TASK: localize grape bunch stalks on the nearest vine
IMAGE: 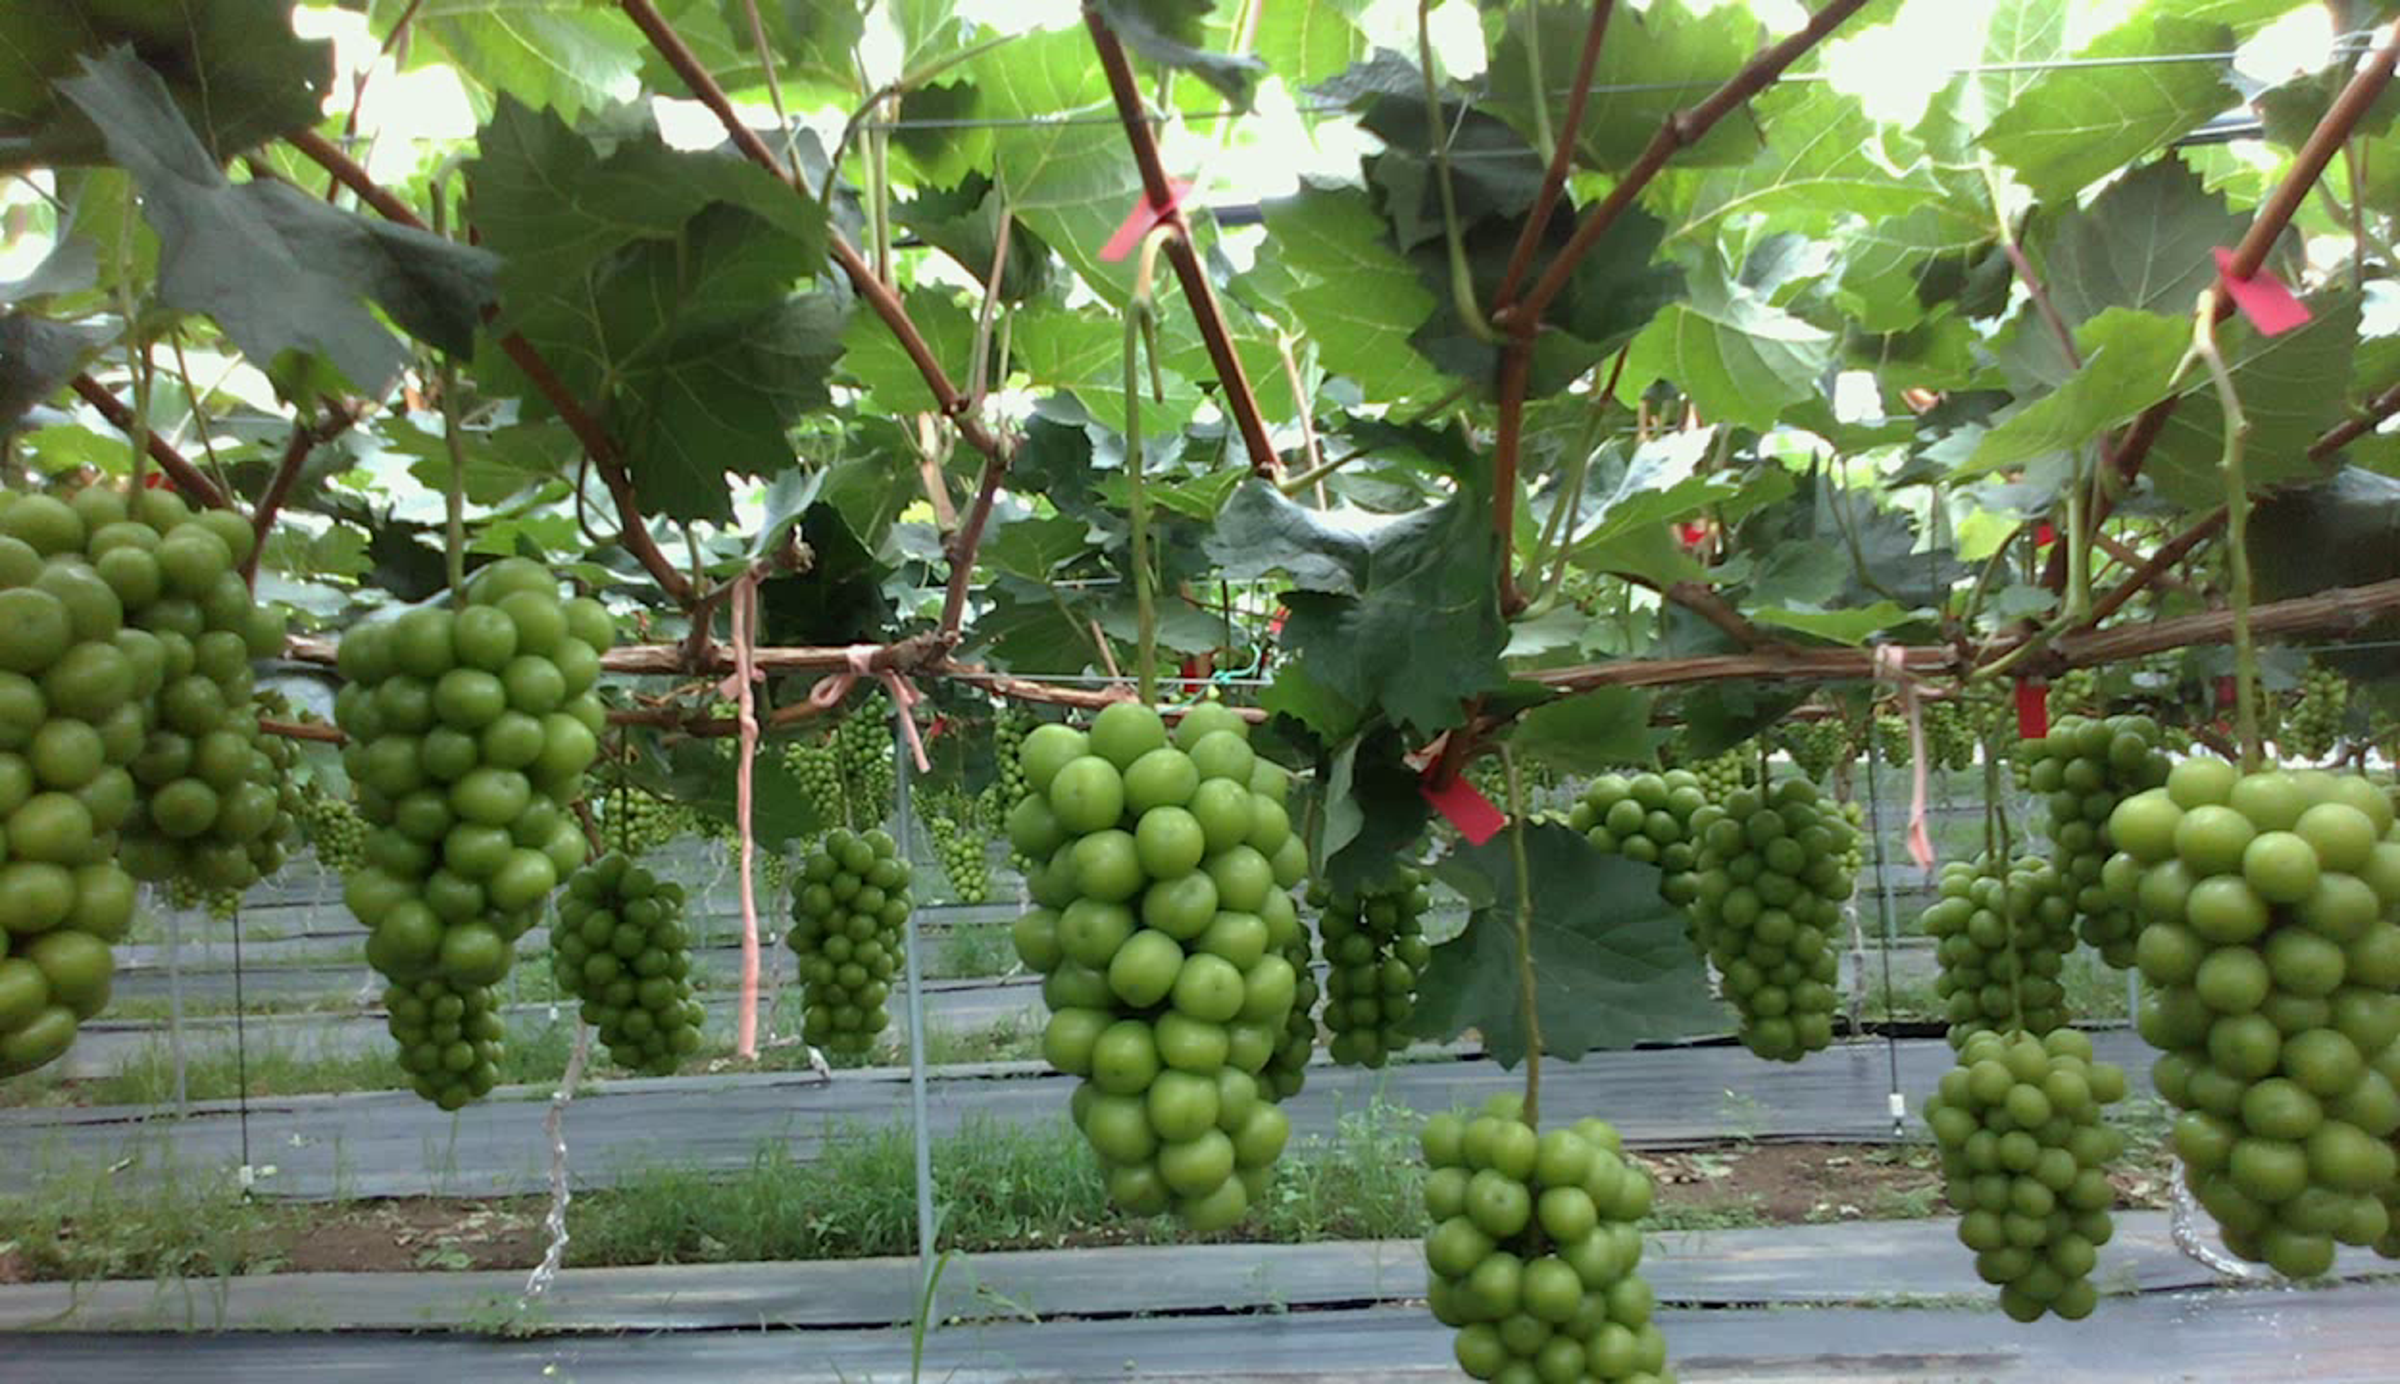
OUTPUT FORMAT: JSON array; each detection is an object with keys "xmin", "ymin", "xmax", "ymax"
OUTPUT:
[
  {"xmin": 63, "ymin": 300, "xmax": 148, "ymax": 523},
  {"xmin": 1121, "ymin": 221, "xmax": 1179, "ymax": 709},
  {"xmin": 1467, "ymin": 740, "xmax": 1542, "ymax": 1134},
  {"xmin": 442, "ymin": 350, "xmax": 469, "ymax": 611},
  {"xmin": 1990, "ymin": 688, "xmax": 2023, "ymax": 1042},
  {"xmin": 2192, "ymin": 290, "xmax": 2260, "ymax": 777}
]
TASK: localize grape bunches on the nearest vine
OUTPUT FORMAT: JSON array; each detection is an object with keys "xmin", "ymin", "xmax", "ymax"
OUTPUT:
[
  {"xmin": 71, "ymin": 488, "xmax": 287, "ymax": 890},
  {"xmin": 2100, "ymin": 755, "xmax": 2398, "ymax": 1278},
  {"xmin": 2, "ymin": 490, "xmax": 165, "ymax": 1080},
  {"xmin": 1419, "ymin": 1094, "xmax": 1677, "ymax": 1382},
  {"xmin": 1008, "ymin": 700, "xmax": 1310, "ymax": 1232},
  {"xmin": 333, "ymin": 556, "xmax": 619, "ymax": 986},
  {"xmin": 1925, "ymin": 1028, "xmax": 2129, "ymax": 1324}
]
